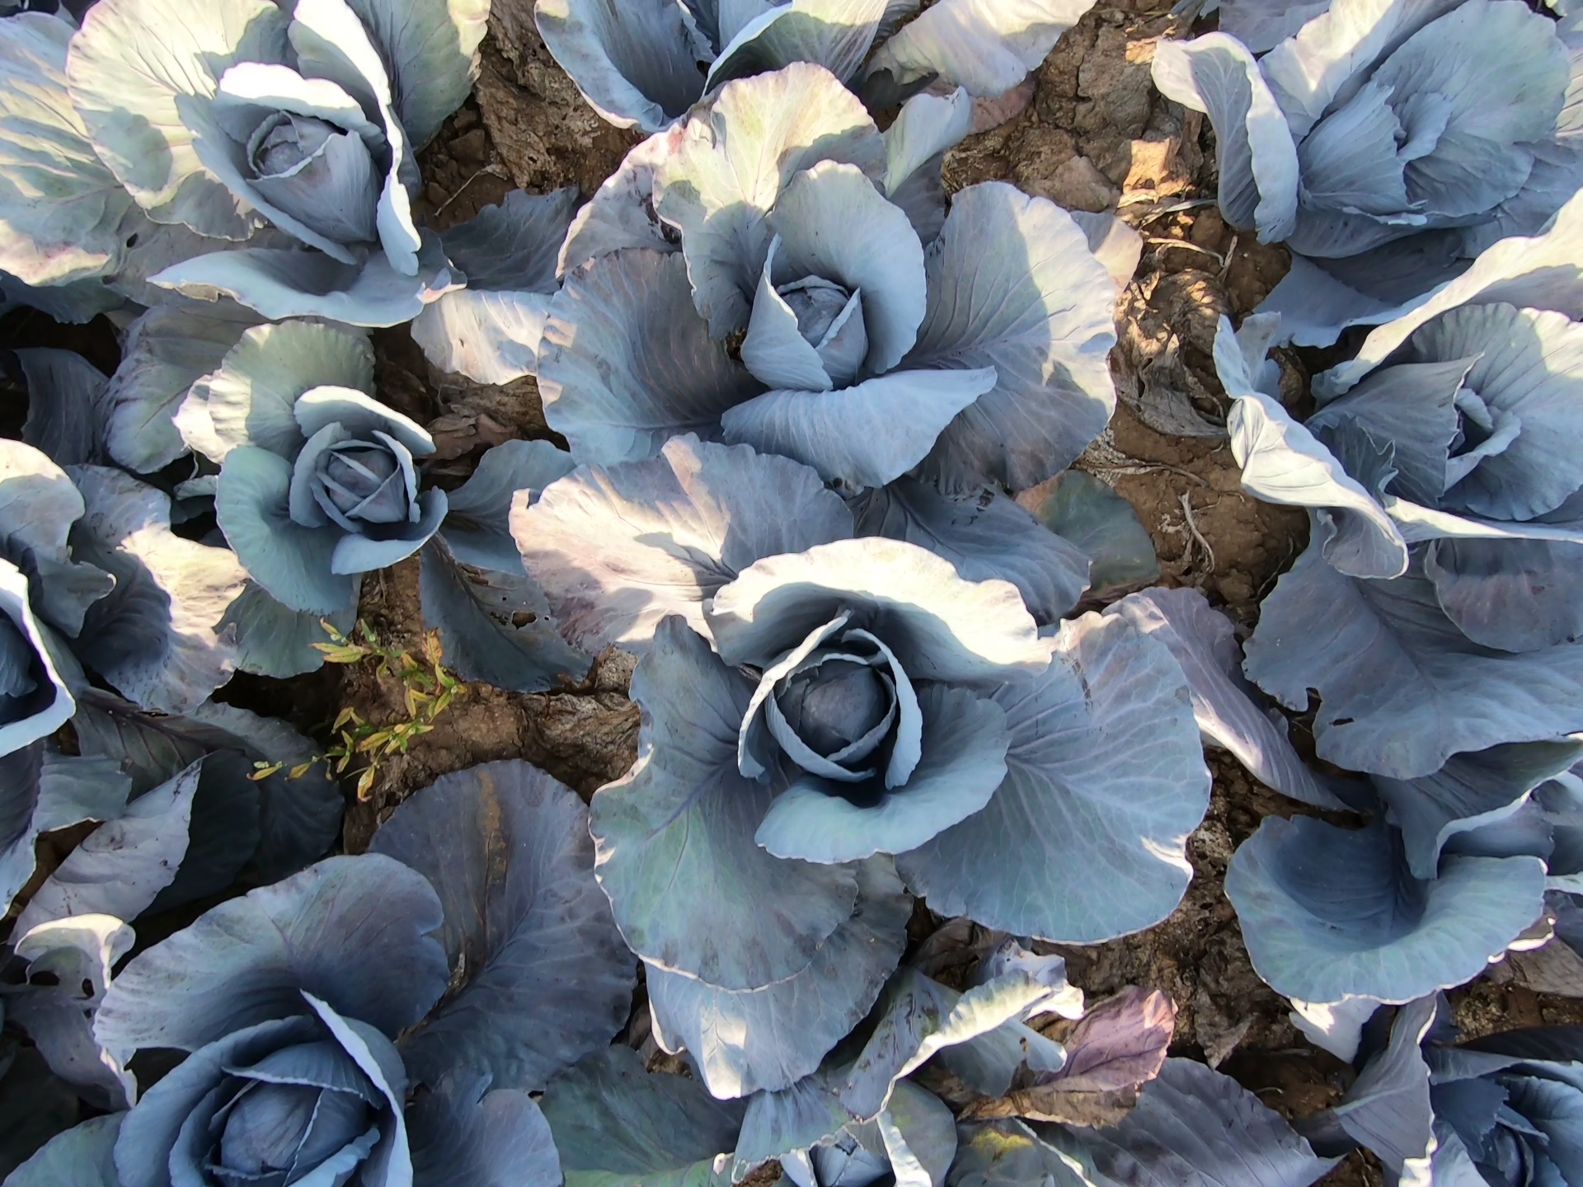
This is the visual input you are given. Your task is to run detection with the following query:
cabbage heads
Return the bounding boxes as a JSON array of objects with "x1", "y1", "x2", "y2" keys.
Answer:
[
  {"x1": 776, "y1": 645, "x2": 887, "y2": 758},
  {"x1": 1407, "y1": 1091, "x2": 1535, "y2": 1185},
  {"x1": 220, "y1": 1053, "x2": 365, "y2": 1183},
  {"x1": 1310, "y1": 112, "x2": 1404, "y2": 195},
  {"x1": 813, "y1": 1086, "x2": 914, "y2": 1185},
  {"x1": 251, "y1": 119, "x2": 359, "y2": 229},
  {"x1": 318, "y1": 443, "x2": 398, "y2": 523},
  {"x1": 1339, "y1": 380, "x2": 1468, "y2": 486},
  {"x1": 772, "y1": 279, "x2": 865, "y2": 381}
]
